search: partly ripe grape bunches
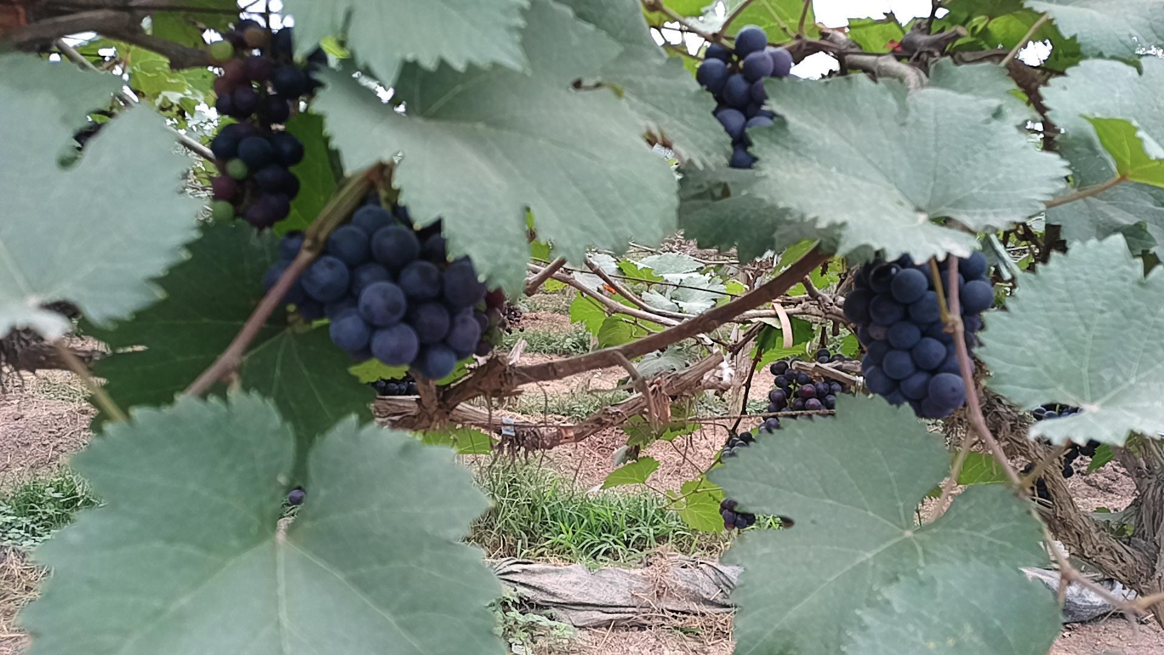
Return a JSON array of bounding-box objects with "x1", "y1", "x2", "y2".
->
[
  {"x1": 210, "y1": 19, "x2": 325, "y2": 229},
  {"x1": 475, "y1": 289, "x2": 521, "y2": 356}
]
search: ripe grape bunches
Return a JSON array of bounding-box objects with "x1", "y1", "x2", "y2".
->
[
  {"x1": 697, "y1": 25, "x2": 792, "y2": 168},
  {"x1": 1021, "y1": 403, "x2": 1100, "y2": 500},
  {"x1": 842, "y1": 252, "x2": 994, "y2": 418},
  {"x1": 758, "y1": 348, "x2": 858, "y2": 434},
  {"x1": 264, "y1": 200, "x2": 487, "y2": 379},
  {"x1": 370, "y1": 374, "x2": 418, "y2": 396},
  {"x1": 720, "y1": 432, "x2": 757, "y2": 528}
]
